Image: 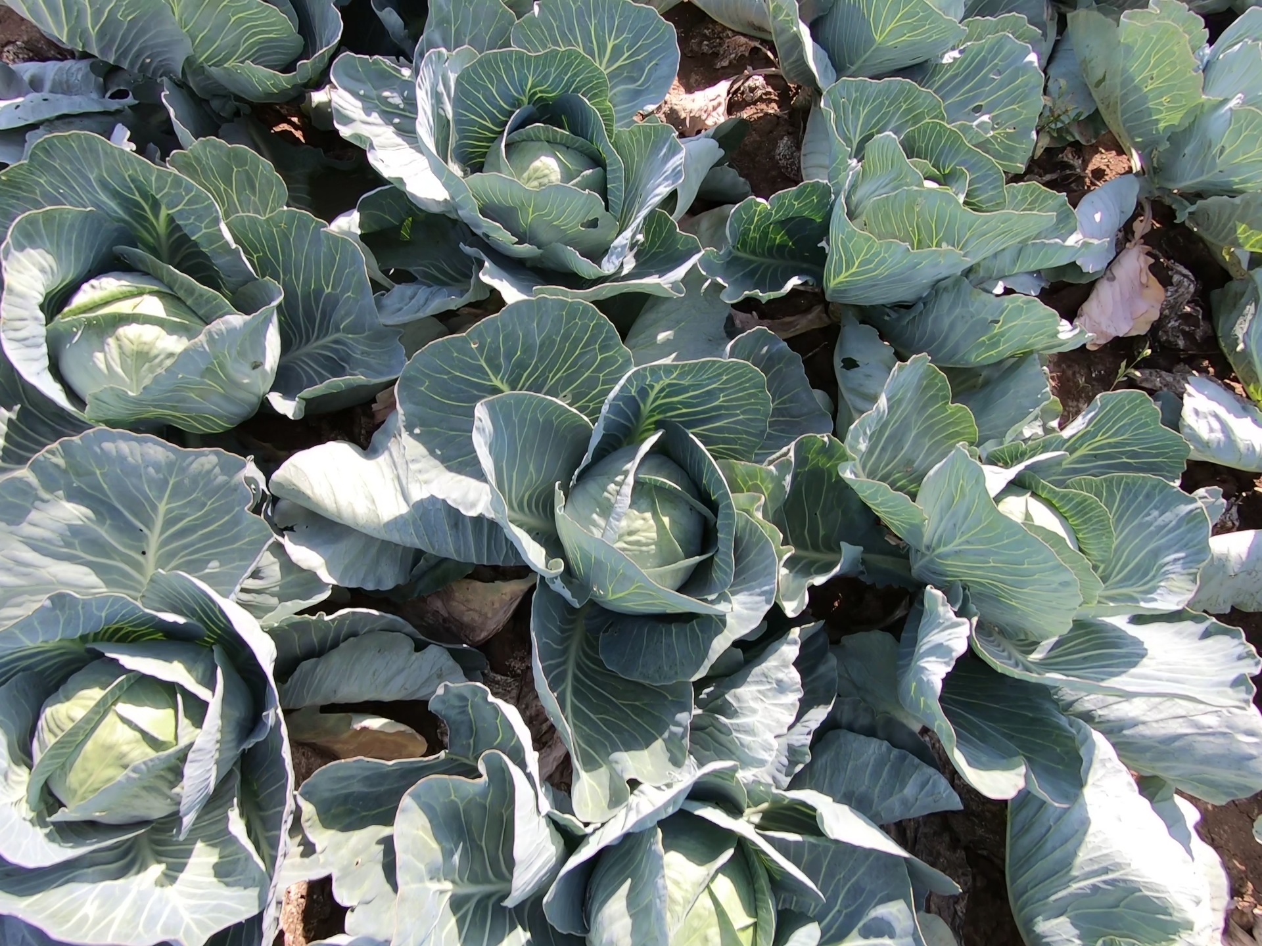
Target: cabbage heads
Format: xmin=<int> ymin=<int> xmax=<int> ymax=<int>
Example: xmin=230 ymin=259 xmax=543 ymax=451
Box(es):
xmin=873 ymin=176 xmax=955 ymax=244
xmin=35 ymin=654 xmax=241 ymax=820
xmin=596 ymin=815 xmax=768 ymax=945
xmin=959 ymin=486 xmax=1081 ymax=588
xmin=493 ymin=126 xmax=602 ymax=229
xmin=60 ymin=275 xmax=225 ymax=412
xmin=574 ymin=453 xmax=705 ymax=601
